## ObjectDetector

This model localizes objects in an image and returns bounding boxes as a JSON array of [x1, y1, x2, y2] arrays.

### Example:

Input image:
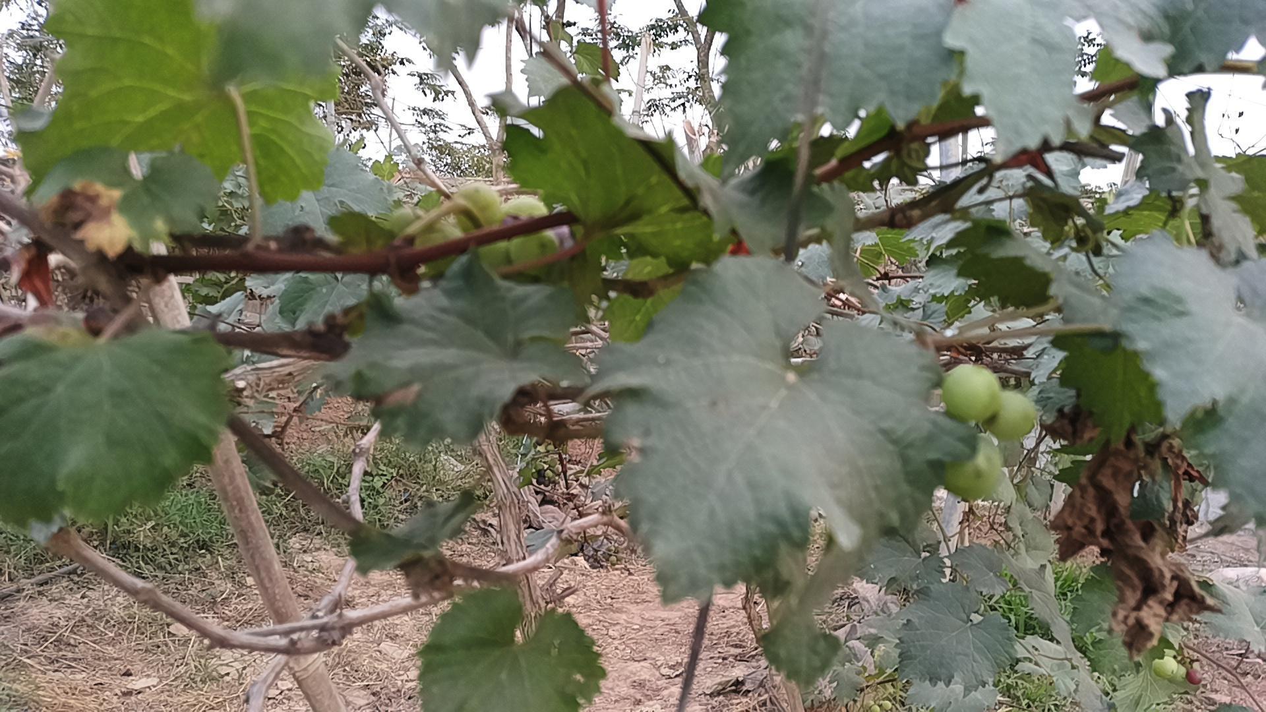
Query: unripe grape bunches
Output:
[[940, 365, 1037, 502], [388, 184, 561, 277]]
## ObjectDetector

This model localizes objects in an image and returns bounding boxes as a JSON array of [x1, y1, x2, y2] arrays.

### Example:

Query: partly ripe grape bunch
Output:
[[1153, 654, 1203, 685]]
